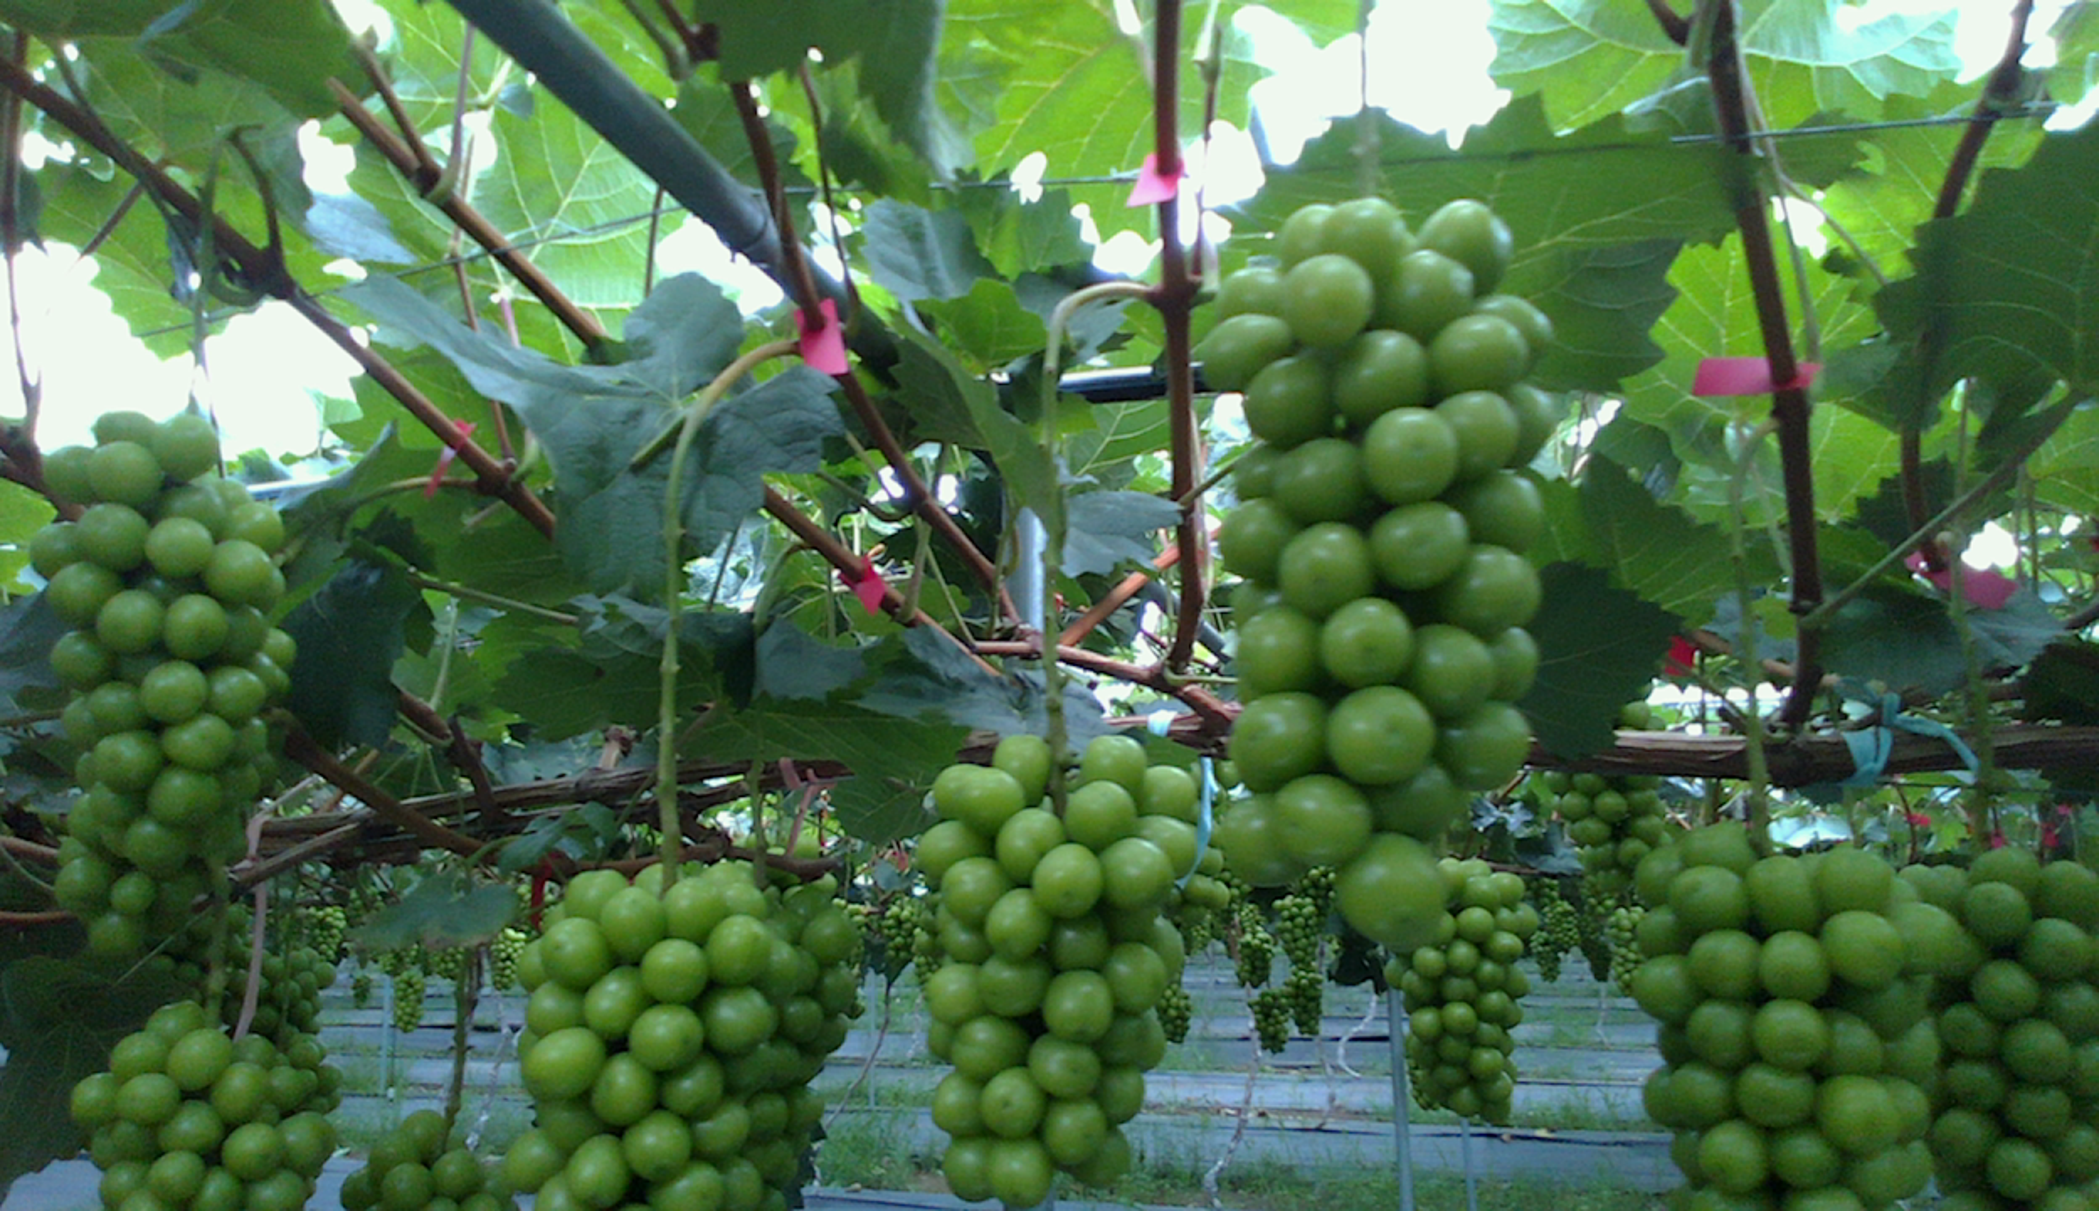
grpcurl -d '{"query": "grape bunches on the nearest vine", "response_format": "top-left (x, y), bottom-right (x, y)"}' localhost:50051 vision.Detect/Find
top-left (503, 859), bottom-right (799, 1209)
top-left (915, 735), bottom-right (1201, 1206)
top-left (72, 1002), bottom-right (338, 1208)
top-left (738, 885), bottom-right (863, 1209)
top-left (1203, 195), bottom-right (1556, 949)
top-left (1635, 817), bottom-right (1958, 1209)
top-left (30, 410), bottom-right (296, 957)
top-left (1899, 846), bottom-right (2097, 1209)
top-left (338, 1108), bottom-right (518, 1209)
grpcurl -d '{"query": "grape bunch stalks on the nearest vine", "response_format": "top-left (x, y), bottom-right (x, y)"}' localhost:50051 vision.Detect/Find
top-left (1043, 281), bottom-right (1150, 819)
top-left (1359, 35), bottom-right (1377, 198)
top-left (205, 859), bottom-right (230, 1033)
top-left (1729, 417), bottom-right (1776, 858)
top-left (427, 947), bottom-right (478, 1166)
top-left (183, 126), bottom-right (288, 417)
top-left (1931, 528), bottom-right (1993, 856)
top-left (654, 336), bottom-right (799, 896)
